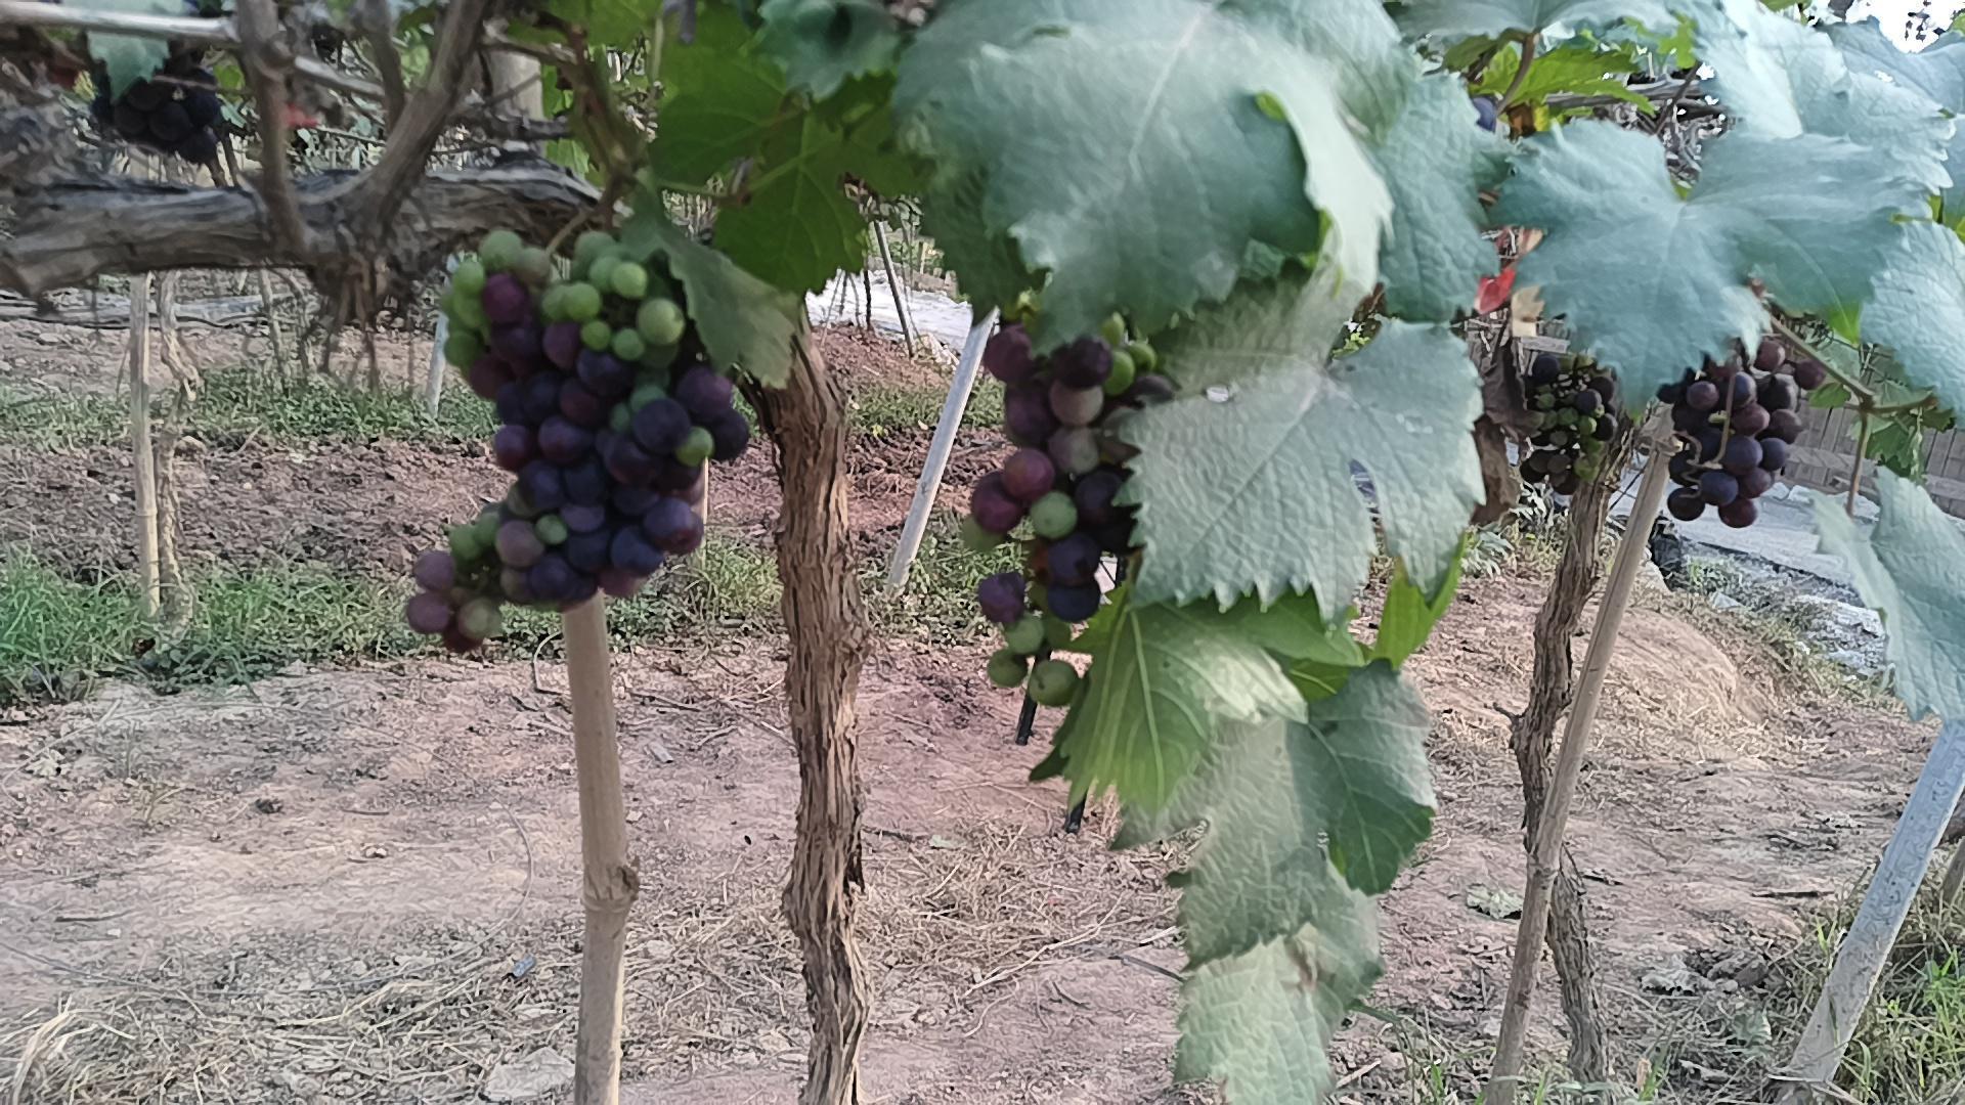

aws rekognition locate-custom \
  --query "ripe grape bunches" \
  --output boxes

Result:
[92,53,226,166]
[1659,337,1825,527]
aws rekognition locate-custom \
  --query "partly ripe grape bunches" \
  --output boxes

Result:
[403,229,748,652]
[961,310,1173,706]
[1520,353,1619,496]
